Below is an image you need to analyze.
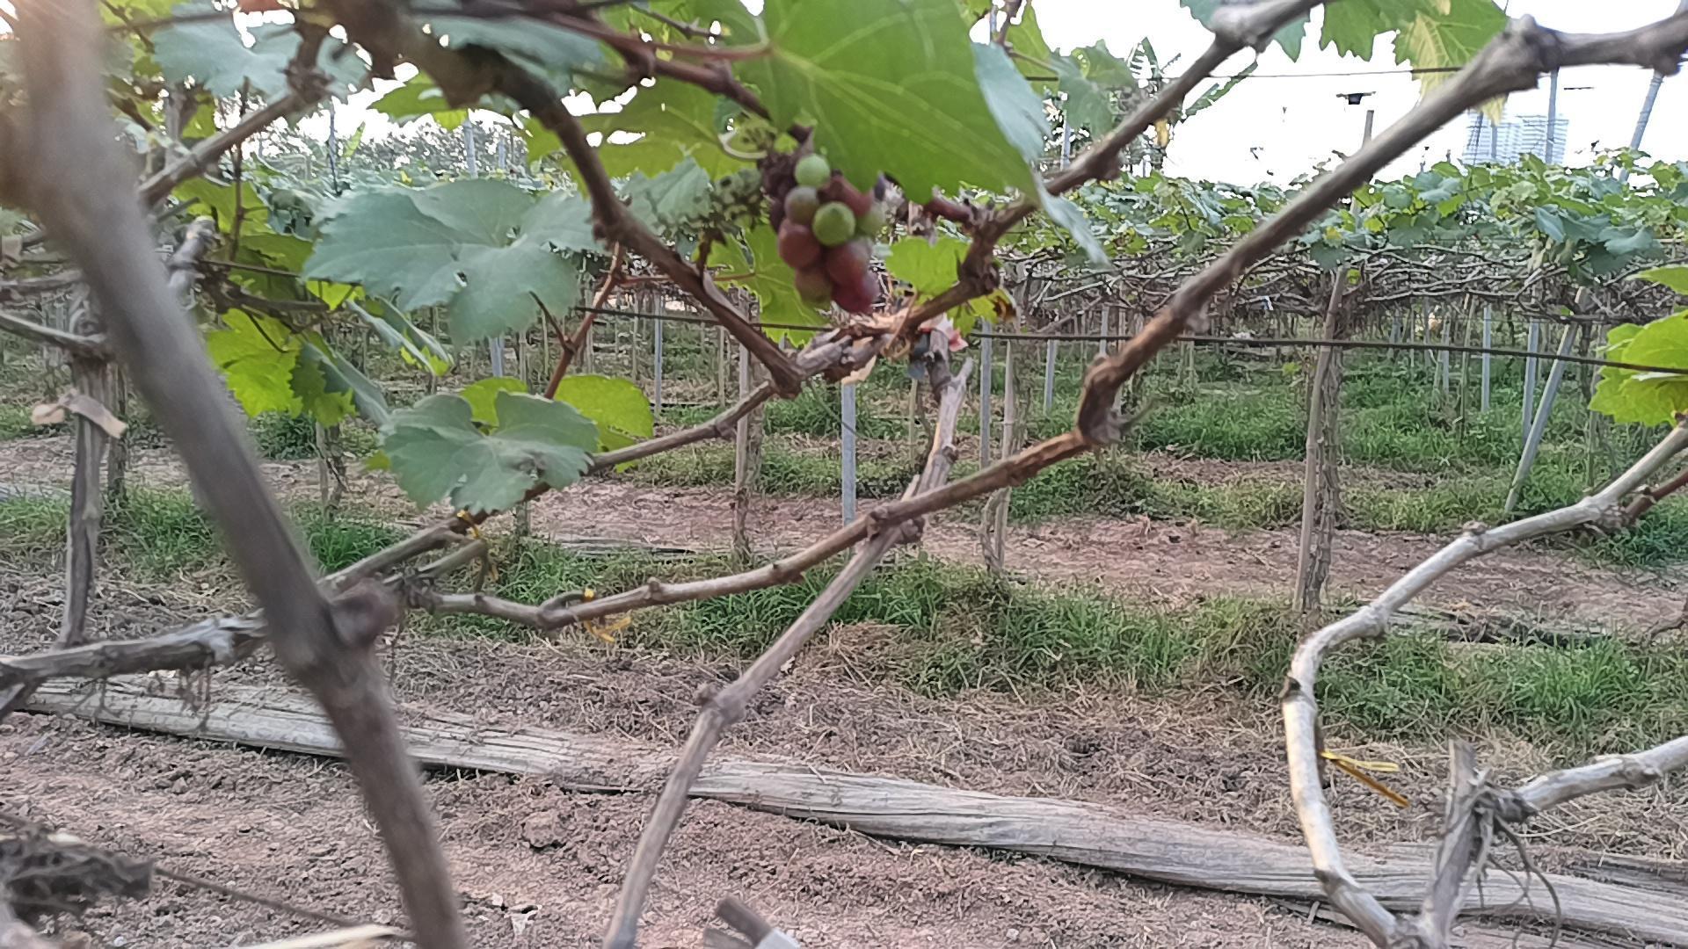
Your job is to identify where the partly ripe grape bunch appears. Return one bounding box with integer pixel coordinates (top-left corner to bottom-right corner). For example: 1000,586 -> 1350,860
759,125 -> 897,314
